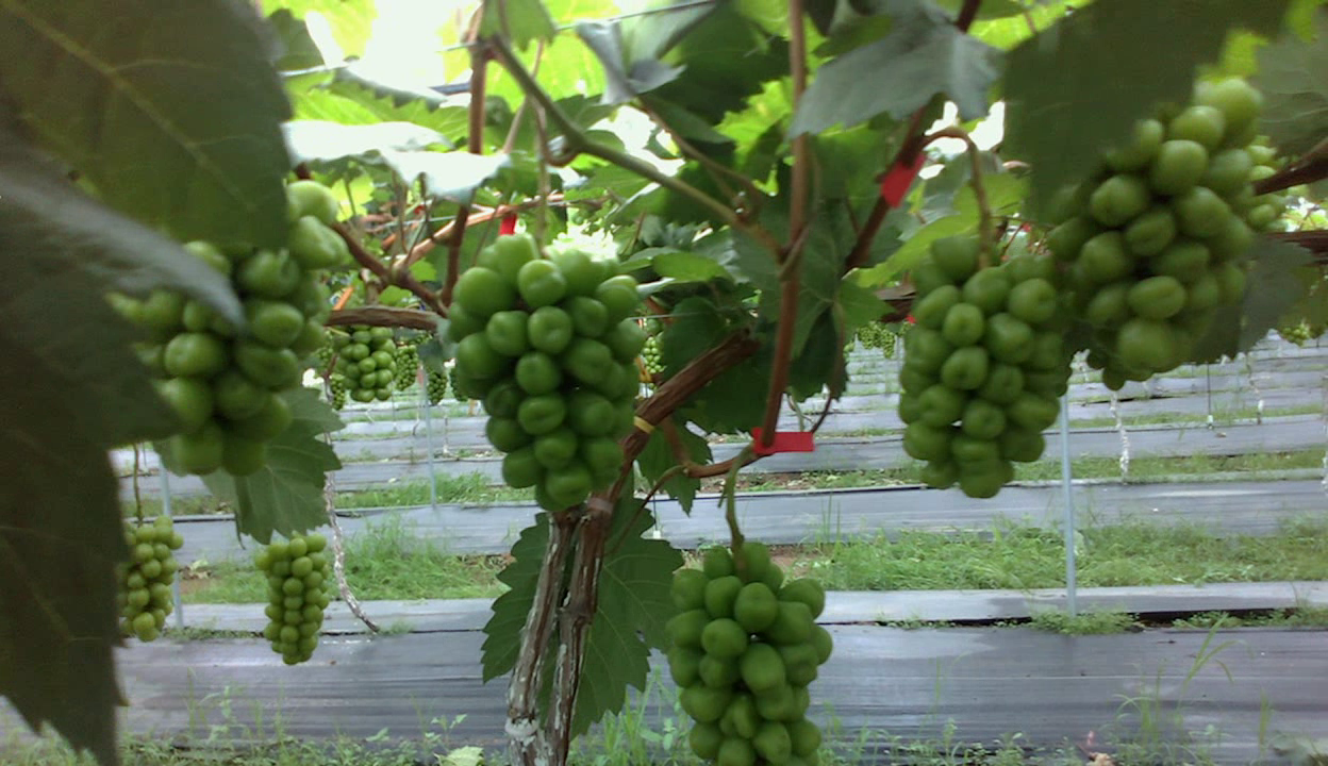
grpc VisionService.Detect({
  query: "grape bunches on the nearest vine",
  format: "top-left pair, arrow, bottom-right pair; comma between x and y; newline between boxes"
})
118,170 -> 348,479
451,232 -> 649,513
1042,77 -> 1262,377
900,235 -> 1069,498
668,543 -> 832,764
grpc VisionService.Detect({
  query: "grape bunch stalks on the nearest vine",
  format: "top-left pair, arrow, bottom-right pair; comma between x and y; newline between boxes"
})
532,106 -> 547,243
718,448 -> 749,581
926,124 -> 994,266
